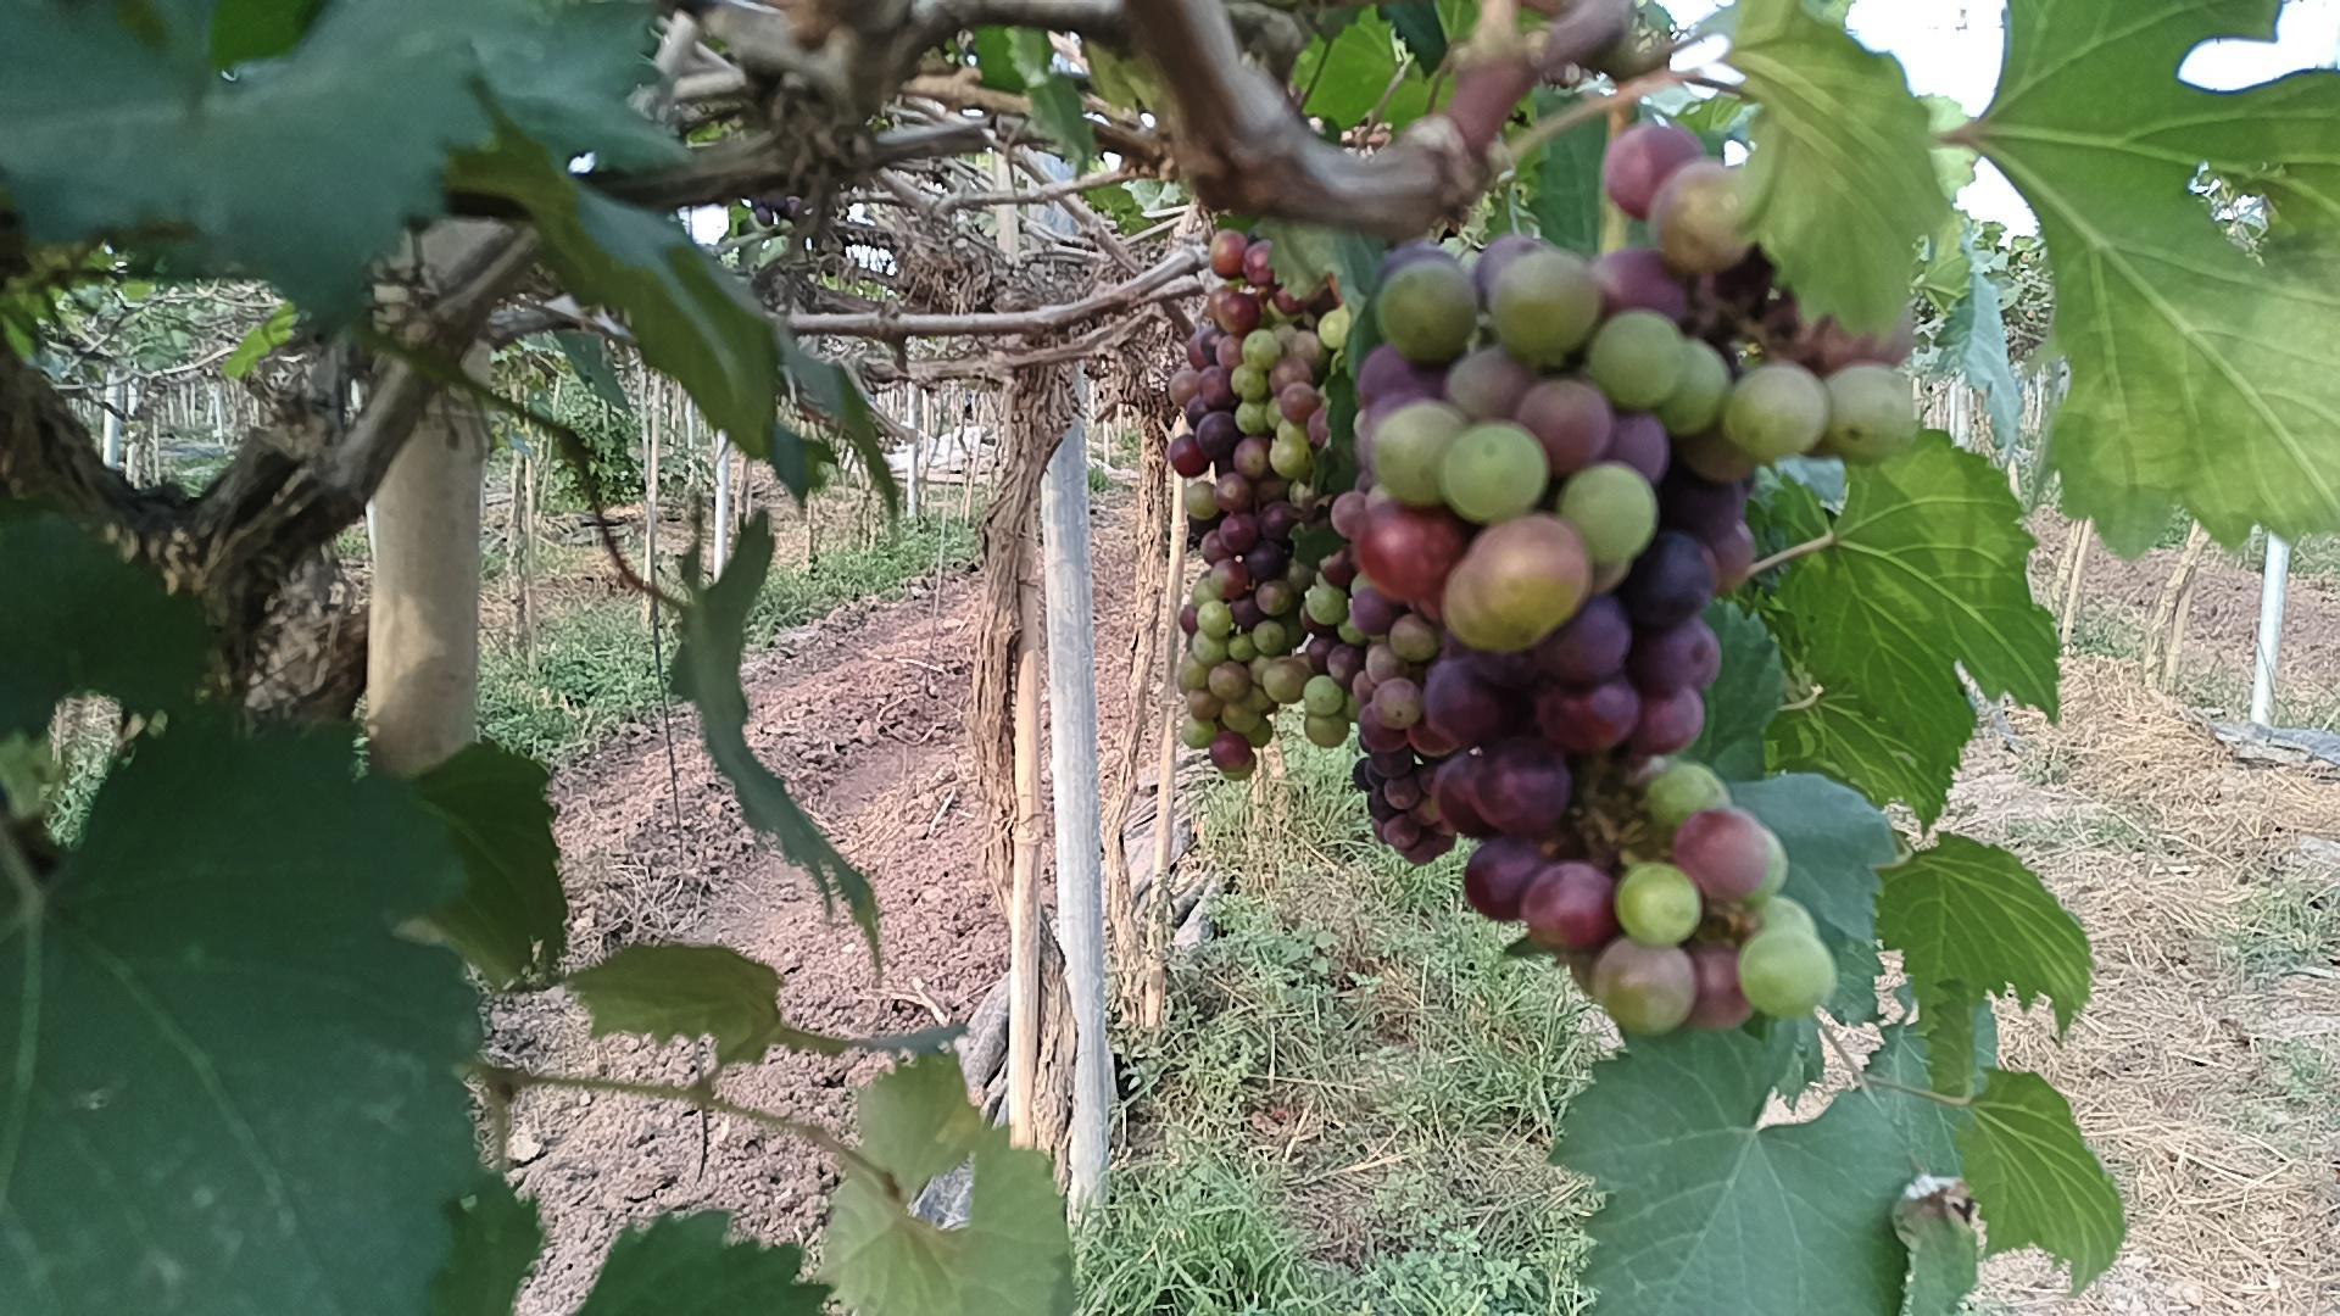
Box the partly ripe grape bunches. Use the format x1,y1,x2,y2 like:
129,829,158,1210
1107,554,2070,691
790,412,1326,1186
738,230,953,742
1333,124,1911,1036
1300,543,1455,861
1169,228,1348,776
